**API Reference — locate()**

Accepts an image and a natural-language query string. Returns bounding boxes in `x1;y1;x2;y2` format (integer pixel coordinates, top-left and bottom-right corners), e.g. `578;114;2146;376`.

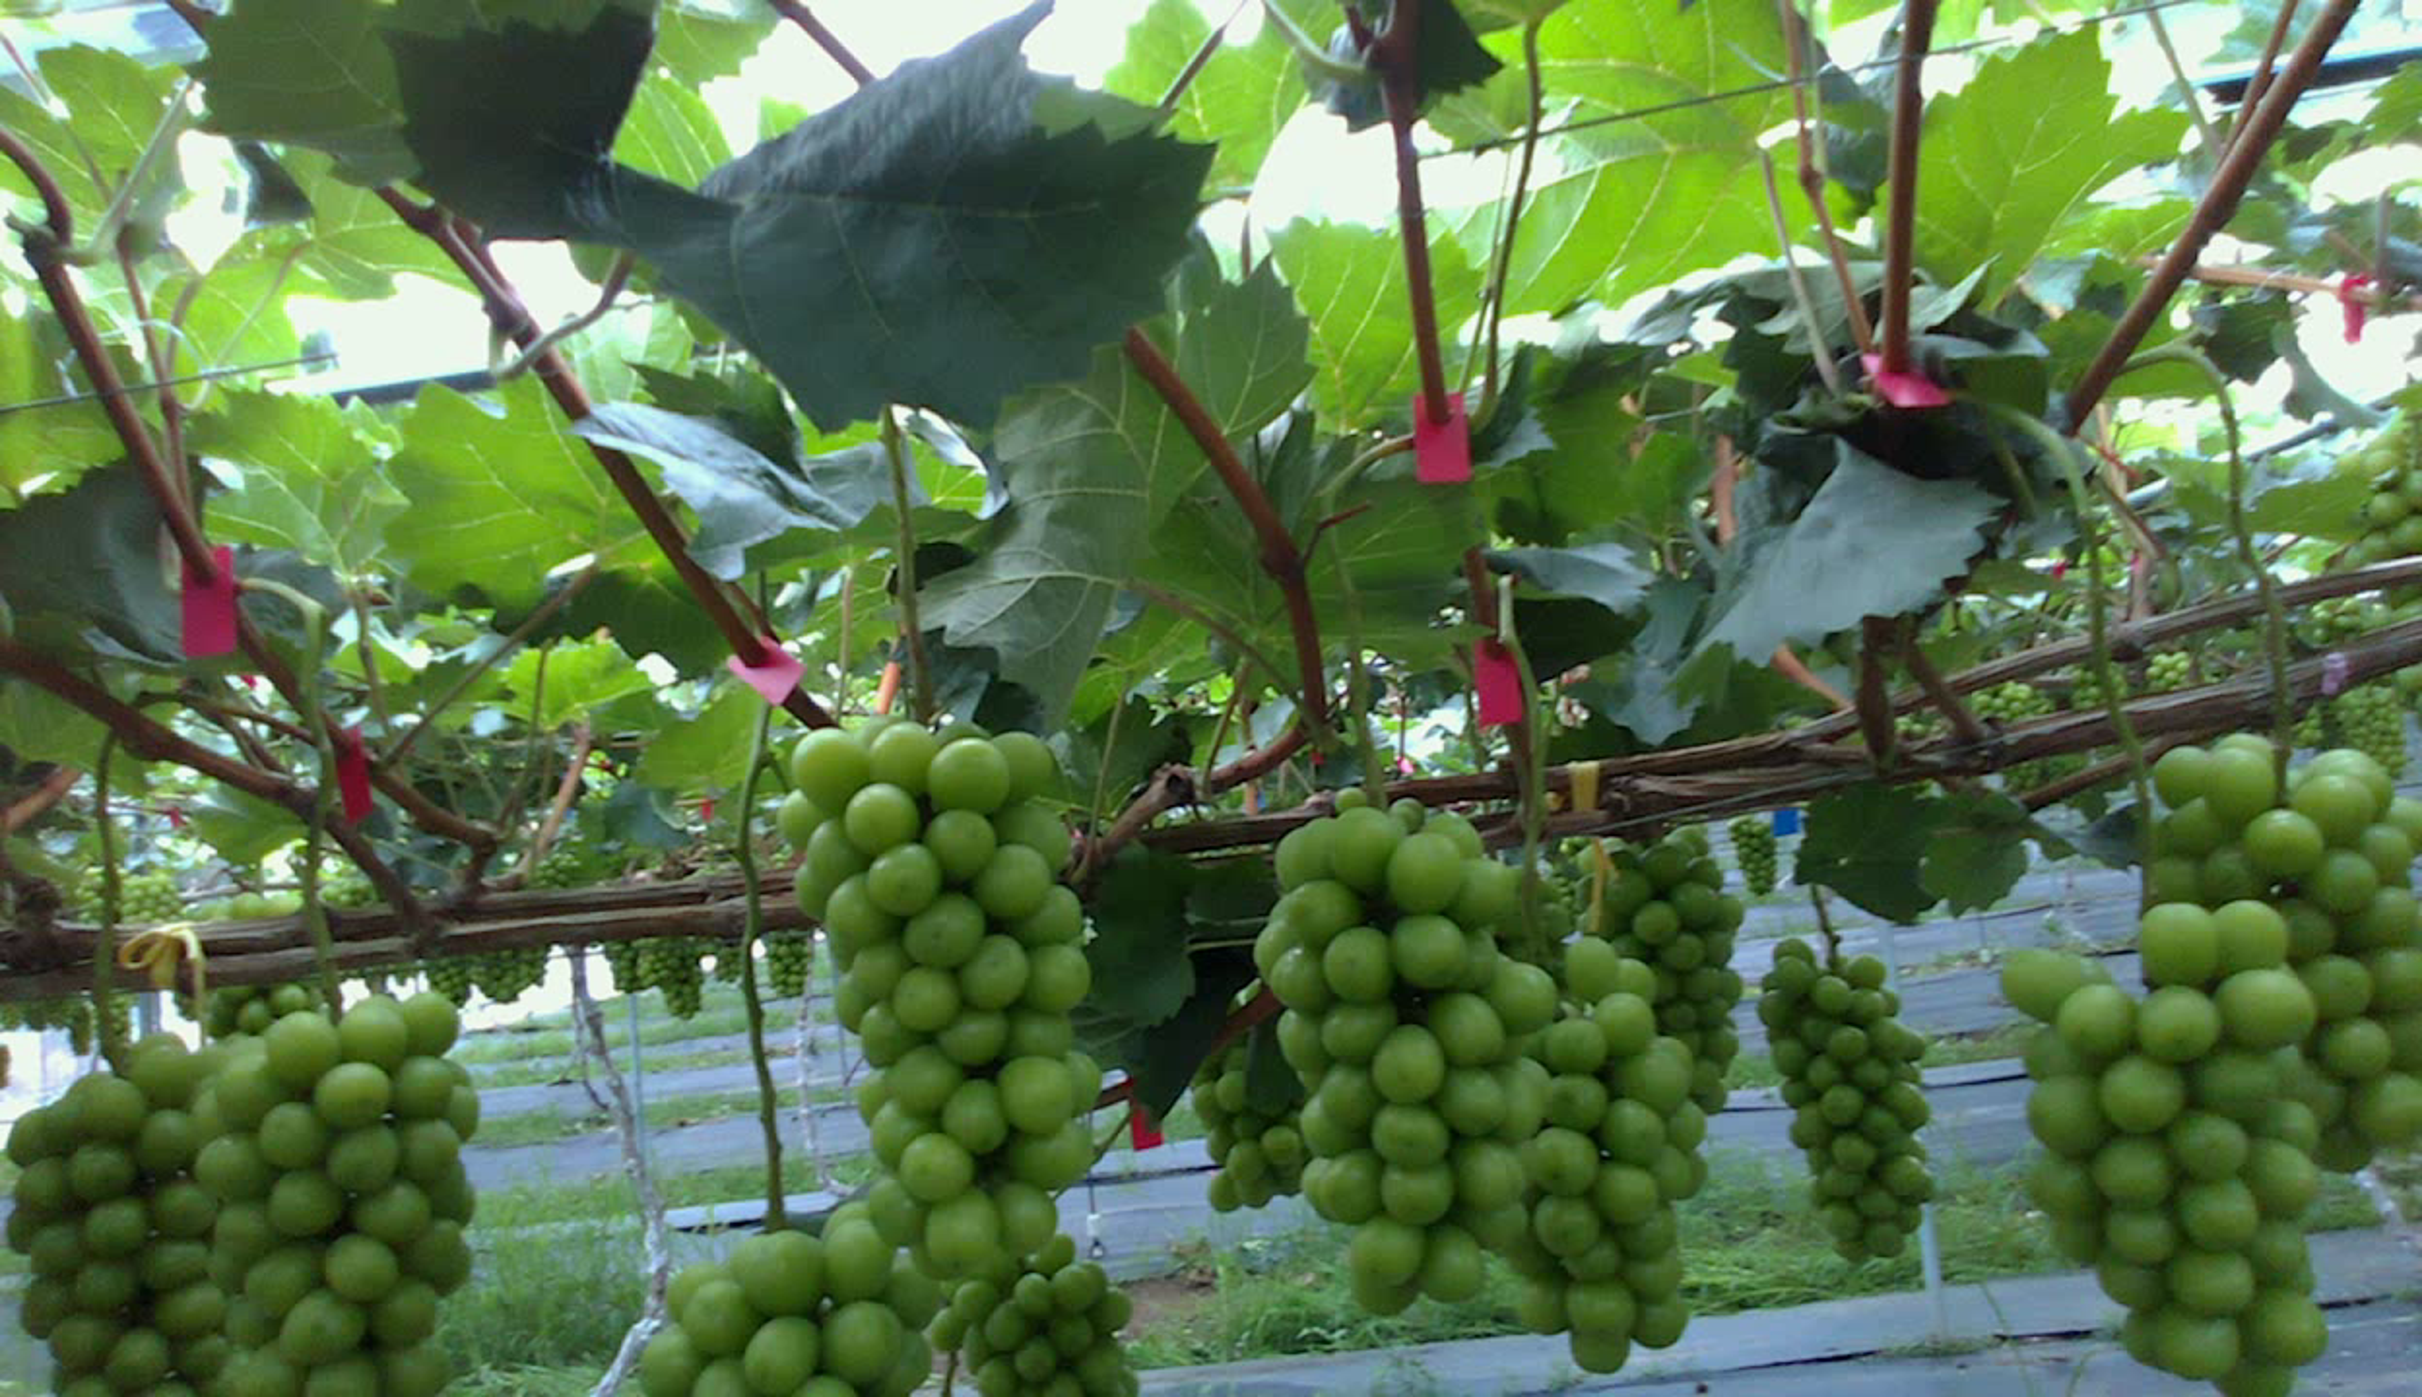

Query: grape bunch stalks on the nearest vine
879;409;930;720
1500;576;1547;966
2139;340;2292;799
1964;394;2158;908
736;702;788;1230
1322;444;1393;803
243;578;342;1017
93;735;120;1067
1017;1261;1027;1273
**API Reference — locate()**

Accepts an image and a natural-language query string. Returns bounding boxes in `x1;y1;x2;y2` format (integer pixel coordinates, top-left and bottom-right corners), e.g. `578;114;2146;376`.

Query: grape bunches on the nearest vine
1993;898;2331;1395
776;714;1102;1286
1254;809;1562;1319
930;1232;1139;1395
194;991;481;1395
637;1203;937;1395
2154;733;2420;1176
1504;939;1712;1378
4;1030;239;1395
